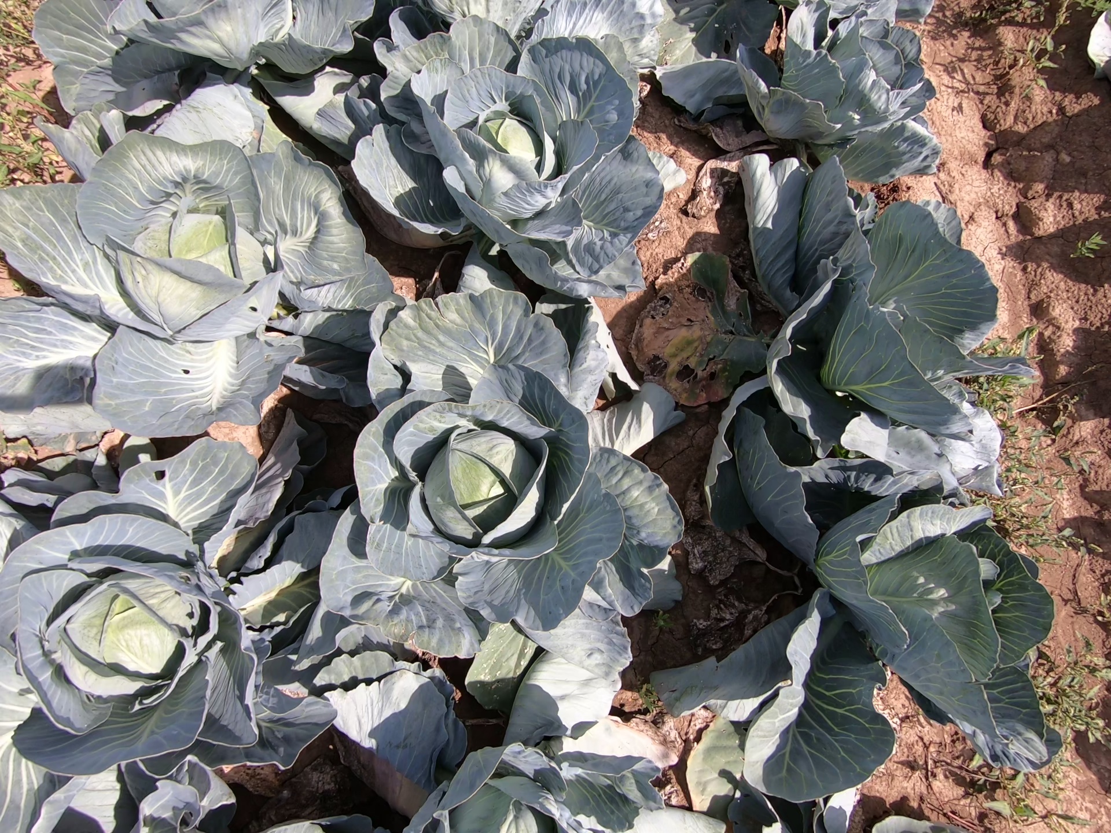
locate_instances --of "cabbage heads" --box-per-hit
[465,116,557,209]
[61,570,197,698]
[425,430,546,548]
[131,212,268,333]
[447,782,555,832]
[857,561,966,651]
